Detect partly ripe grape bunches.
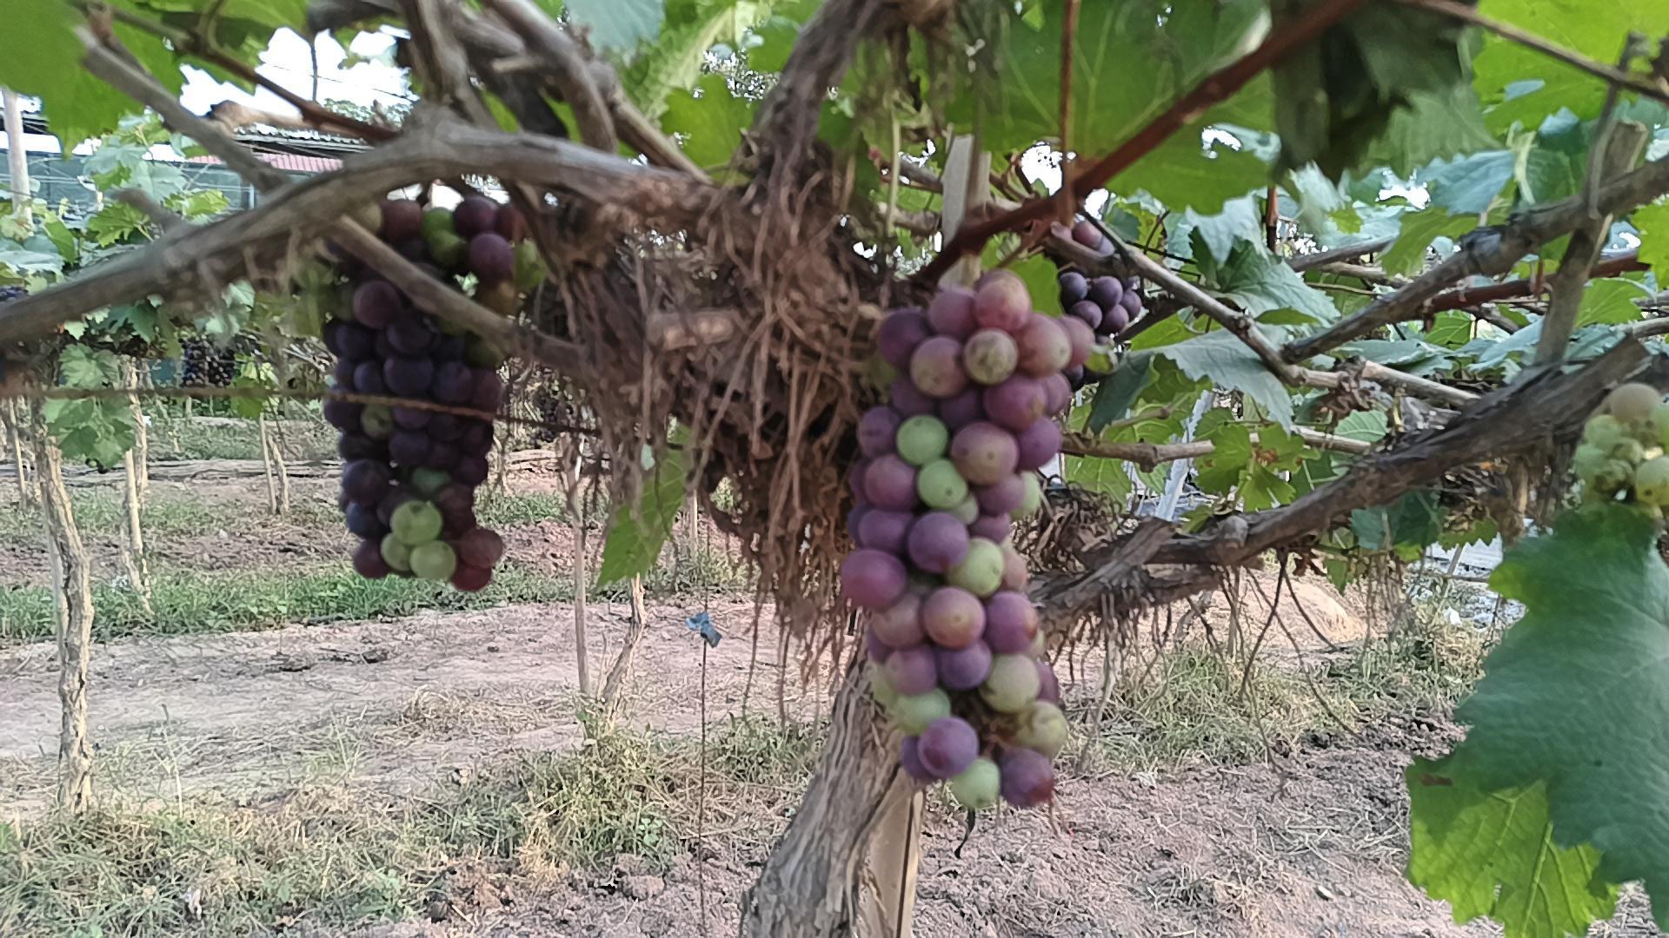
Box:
[322,187,522,590]
[840,268,1093,809]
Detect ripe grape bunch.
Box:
[1045,217,1149,345]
